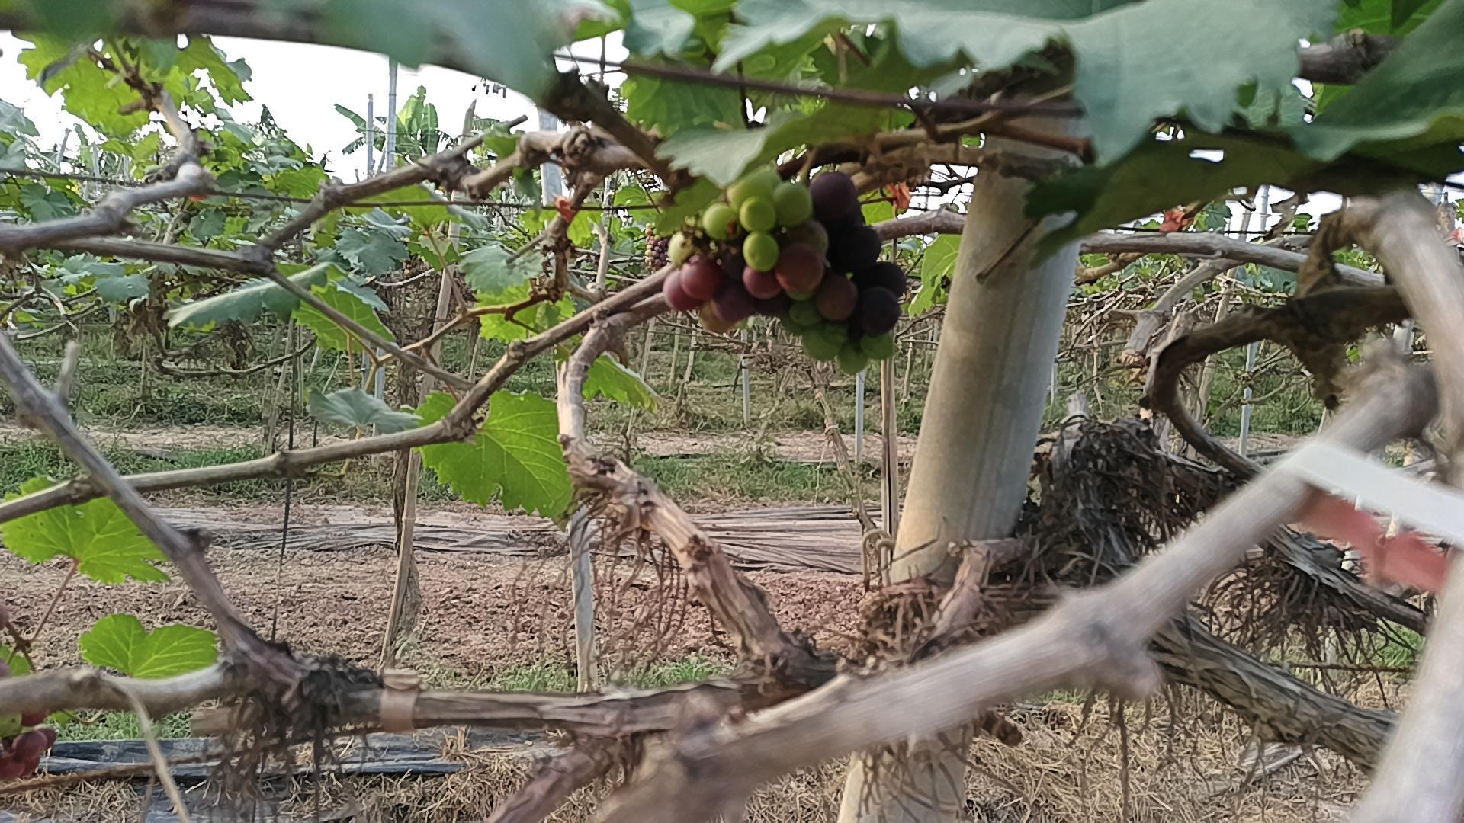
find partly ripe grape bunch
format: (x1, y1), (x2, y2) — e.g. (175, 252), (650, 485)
(663, 160), (905, 374)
